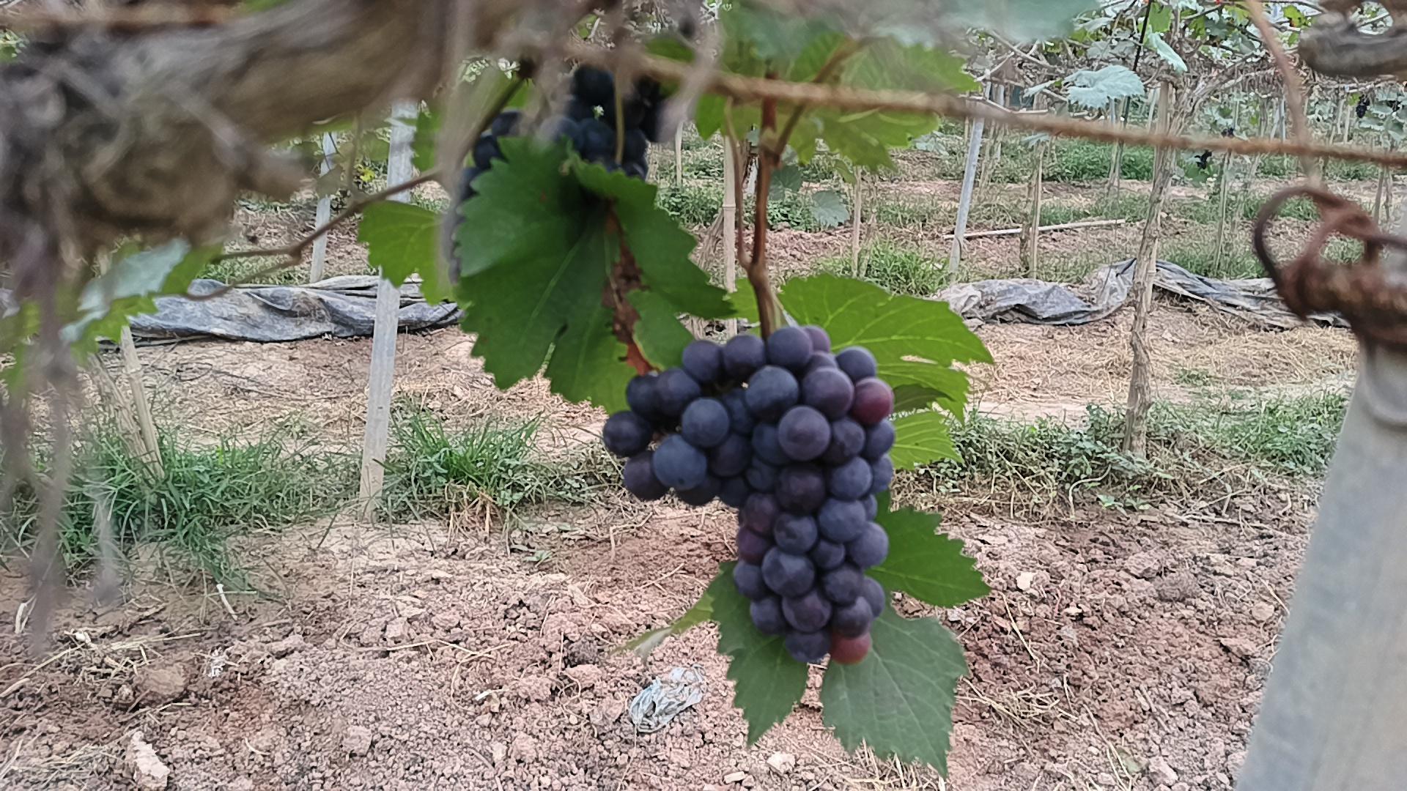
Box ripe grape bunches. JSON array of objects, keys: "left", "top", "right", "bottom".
[
  {"left": 473, "top": 65, "right": 668, "bottom": 178},
  {"left": 611, "top": 325, "right": 895, "bottom": 663}
]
